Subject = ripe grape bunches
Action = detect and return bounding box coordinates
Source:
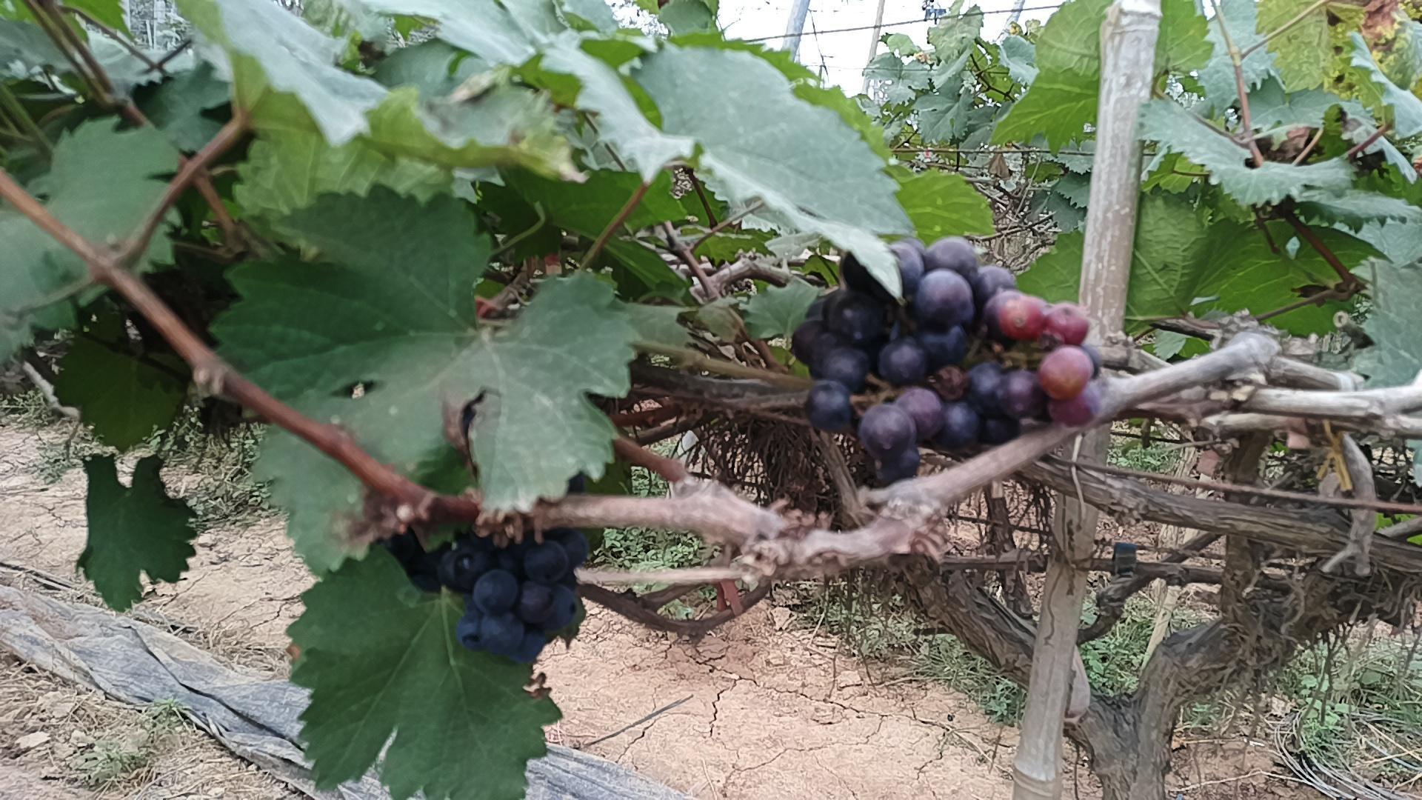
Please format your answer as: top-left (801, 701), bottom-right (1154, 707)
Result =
top-left (792, 237), bottom-right (1101, 484)
top-left (384, 529), bottom-right (589, 662)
